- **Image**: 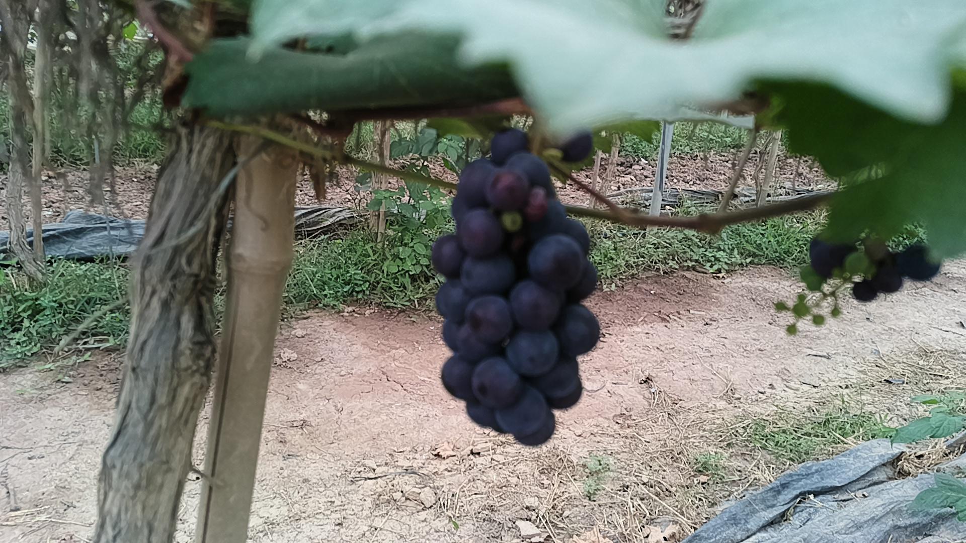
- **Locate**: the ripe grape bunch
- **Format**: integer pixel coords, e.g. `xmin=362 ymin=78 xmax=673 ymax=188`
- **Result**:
xmin=432 ymin=128 xmax=599 ymax=444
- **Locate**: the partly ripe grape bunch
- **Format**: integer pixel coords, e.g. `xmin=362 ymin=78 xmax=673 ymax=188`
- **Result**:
xmin=775 ymin=237 xmax=941 ymax=336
